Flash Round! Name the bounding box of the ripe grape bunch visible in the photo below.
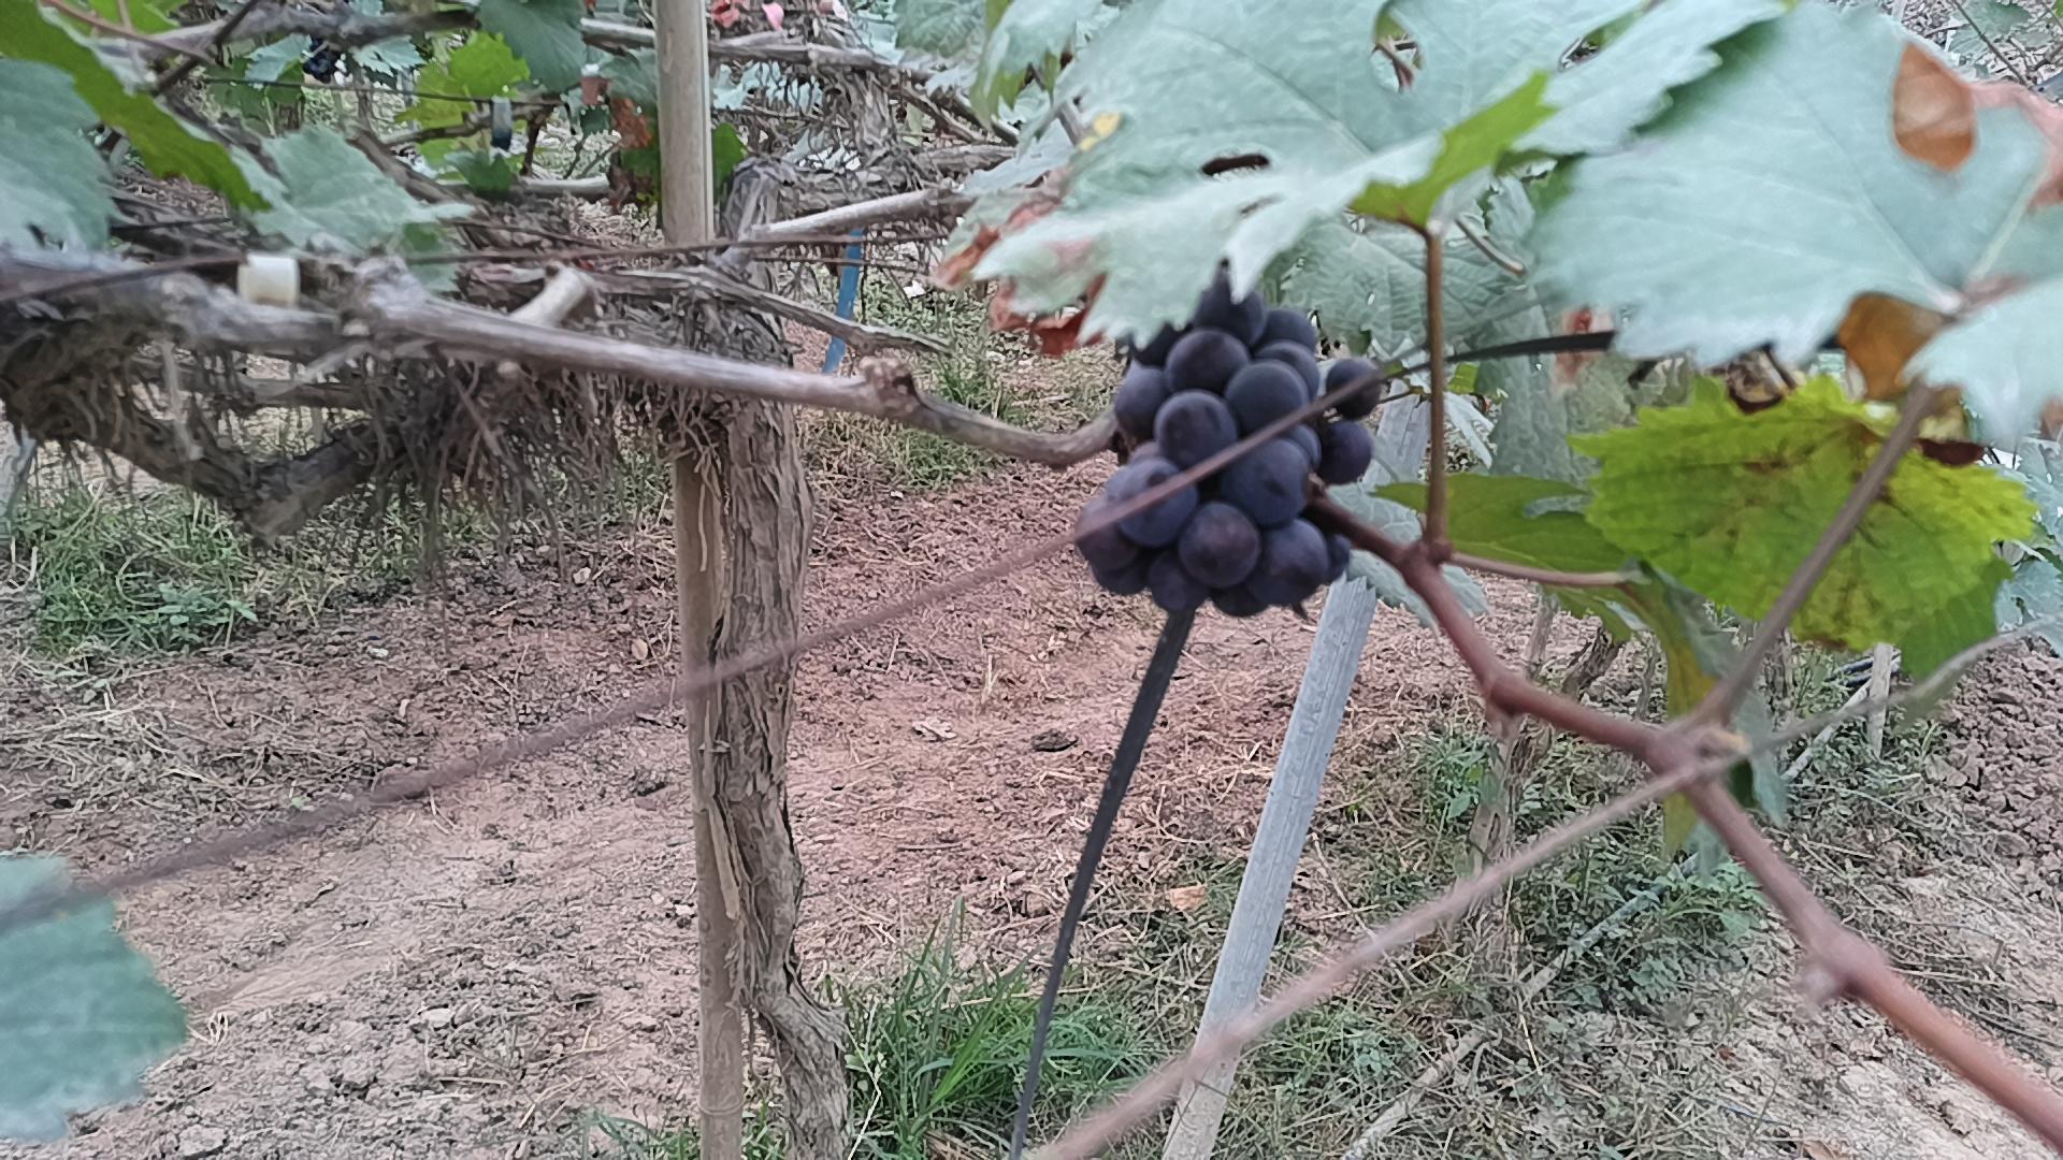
[1078,269,1381,615]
